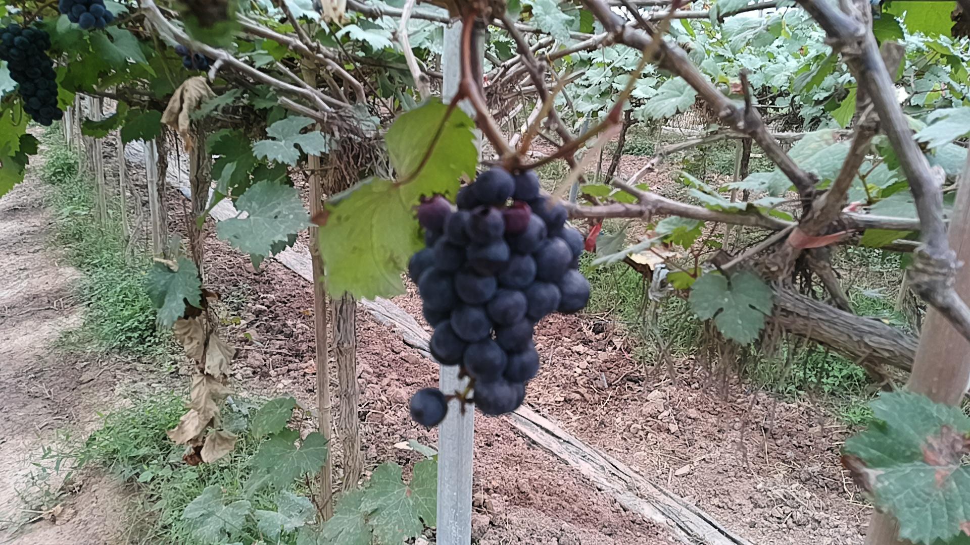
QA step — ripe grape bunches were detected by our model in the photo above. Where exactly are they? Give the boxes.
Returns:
[174,44,213,72]
[0,23,63,126]
[59,0,115,29]
[408,167,589,426]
